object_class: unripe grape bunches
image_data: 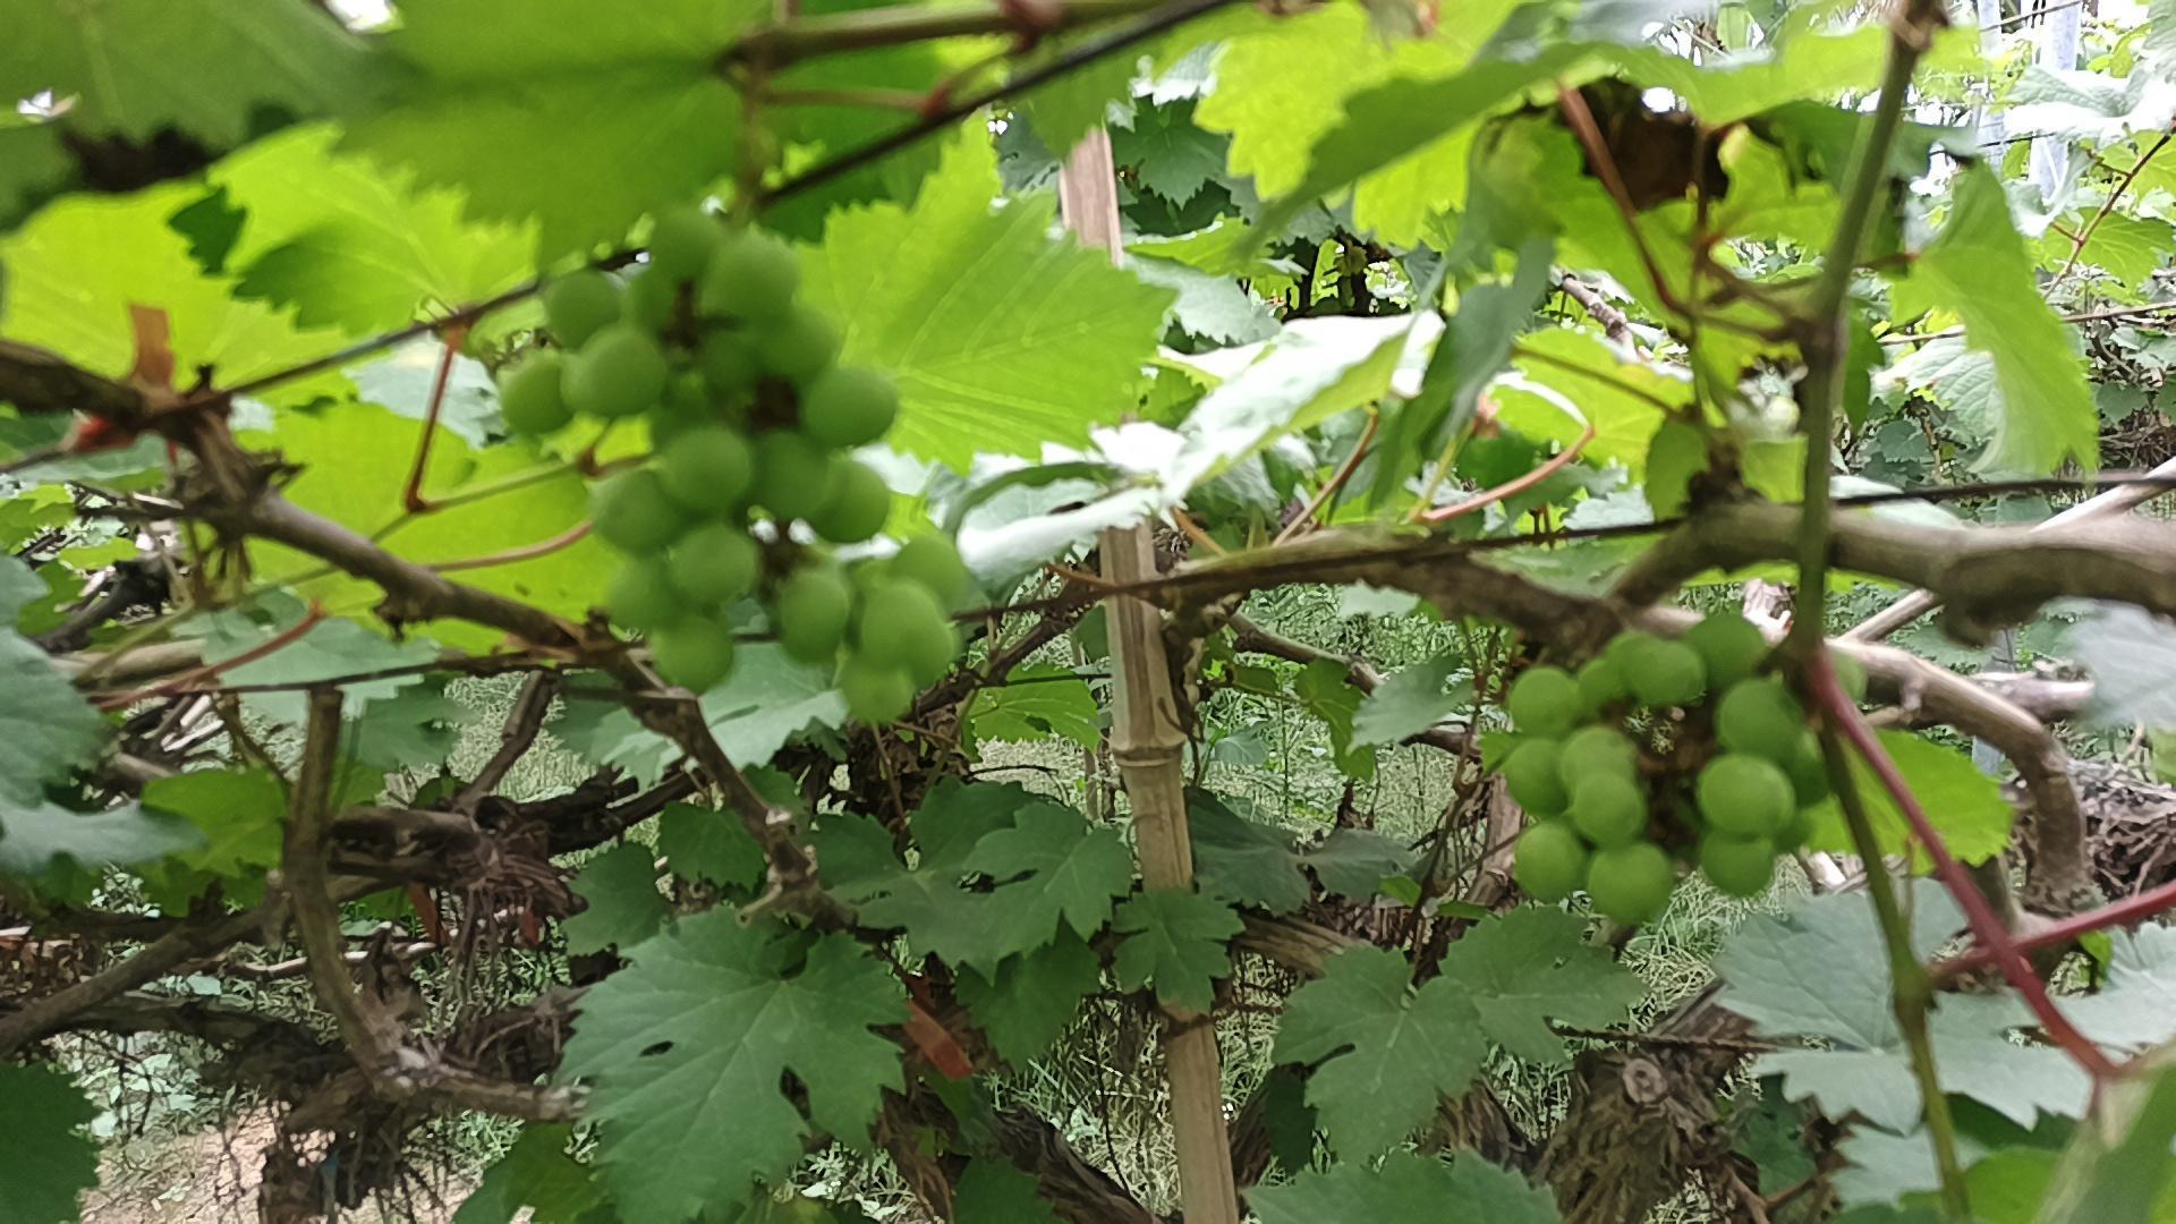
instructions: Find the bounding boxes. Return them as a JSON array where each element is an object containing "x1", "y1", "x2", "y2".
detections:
[
  {"x1": 498, "y1": 210, "x2": 968, "y2": 722},
  {"x1": 1481, "y1": 618, "x2": 1824, "y2": 926}
]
